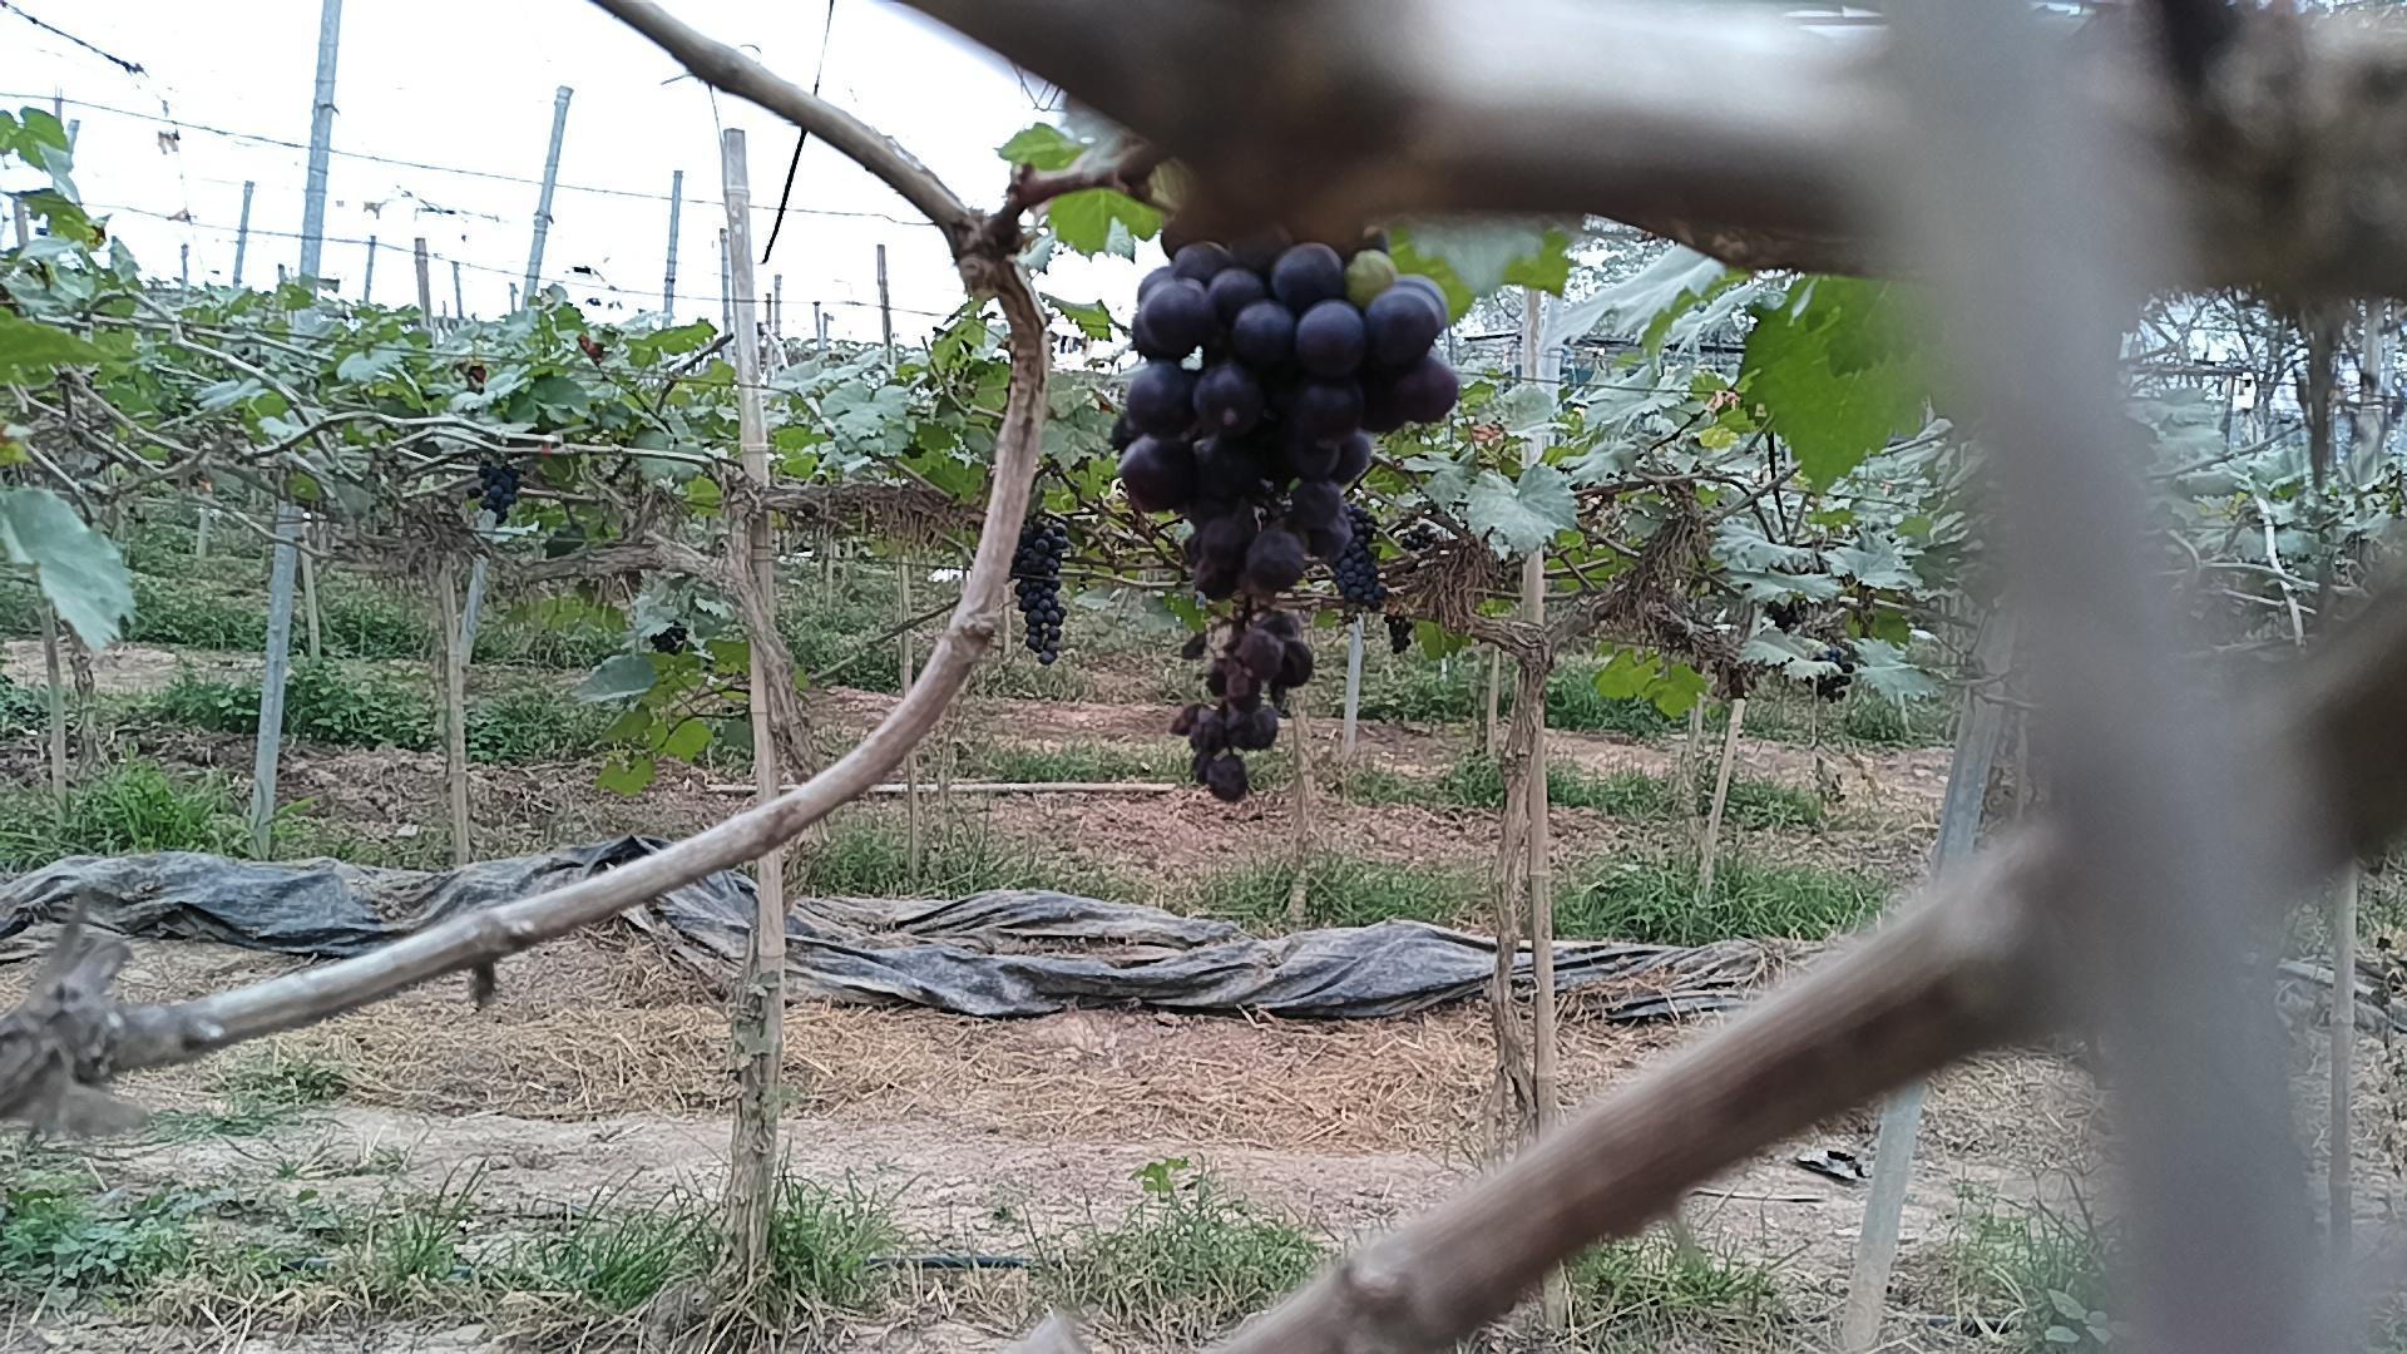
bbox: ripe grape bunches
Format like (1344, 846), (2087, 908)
(1114, 233), (1457, 800)
(1810, 664), (1852, 701)
(1399, 522), (1437, 549)
(468, 460), (522, 527)
(1385, 614), (1415, 653)
(649, 623), (688, 653)
(1010, 512), (1067, 663)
